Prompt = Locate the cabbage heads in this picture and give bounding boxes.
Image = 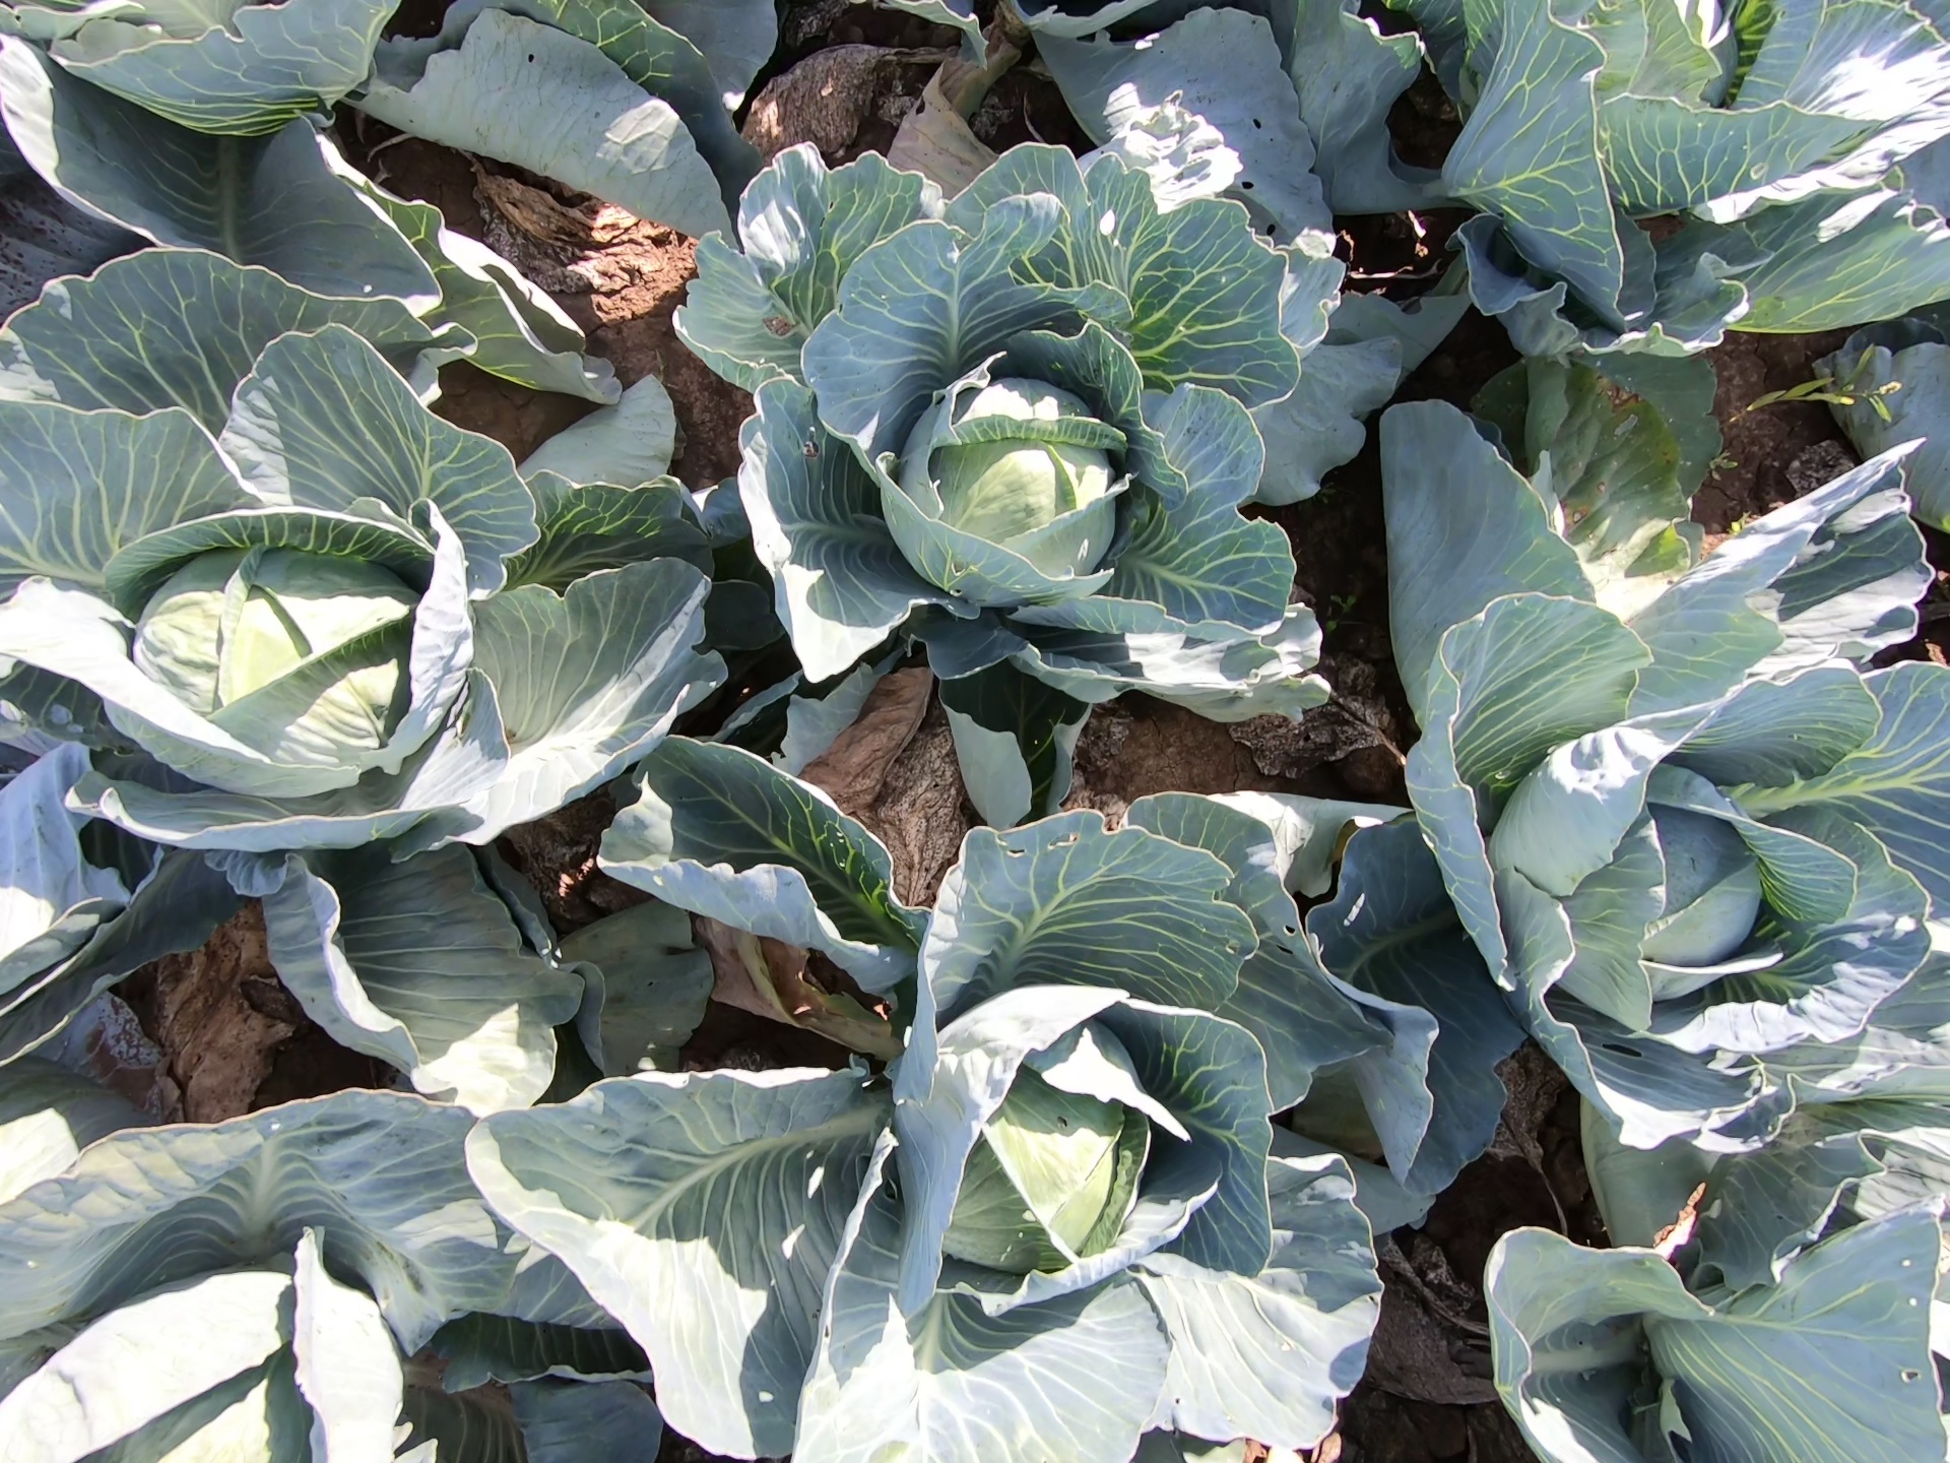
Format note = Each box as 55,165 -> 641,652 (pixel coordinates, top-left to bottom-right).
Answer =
1554,782 -> 1768,991
906,1006 -> 1155,1266
923,386 -> 1111,594
19,1268 -> 394,1459
1617,2 -> 1740,122
132,542 -> 436,769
